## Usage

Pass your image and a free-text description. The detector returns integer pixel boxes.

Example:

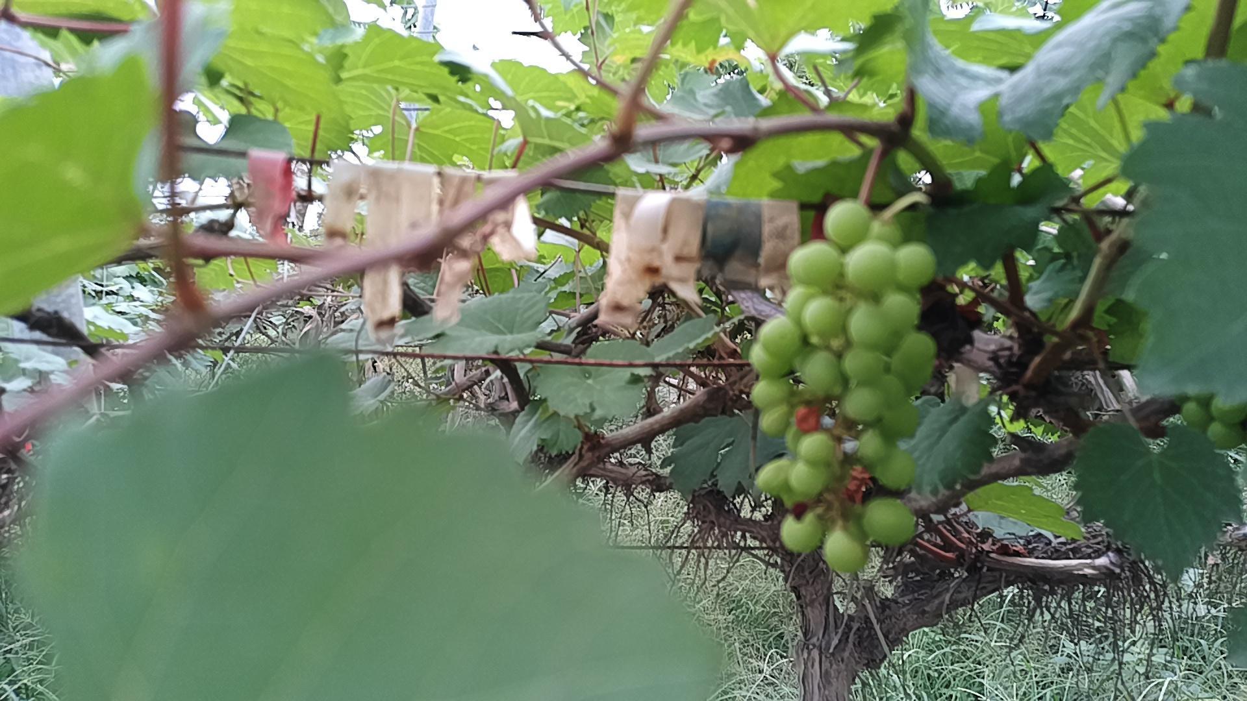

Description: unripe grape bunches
[749,199,935,573]
[1181,393,1246,449]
